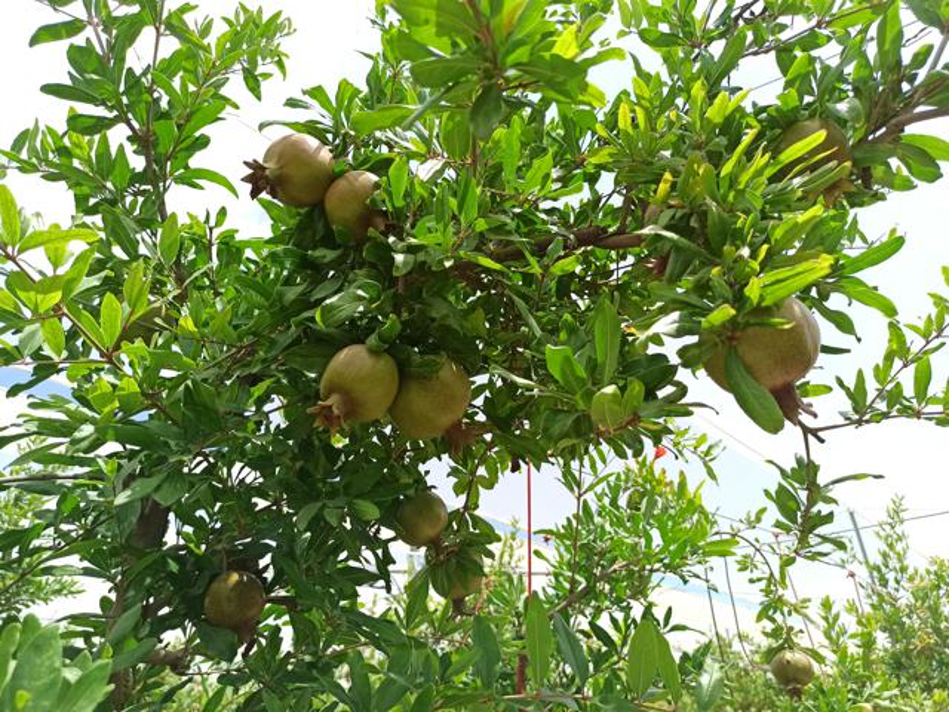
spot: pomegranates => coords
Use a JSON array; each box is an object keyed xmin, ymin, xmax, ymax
[
  {"xmin": 445, "ymin": 574, "xmax": 482, "ymax": 620},
  {"xmin": 770, "ymin": 650, "xmax": 814, "ymax": 697},
  {"xmin": 396, "ymin": 492, "xmax": 460, "ymax": 564},
  {"xmin": 388, "ymin": 356, "xmax": 489, "ymax": 458},
  {"xmin": 783, "ymin": 117, "xmax": 854, "ymax": 209},
  {"xmin": 240, "ymin": 132, "xmax": 337, "ymax": 208},
  {"xmin": 697, "ymin": 297, "xmax": 821, "ymax": 427},
  {"xmin": 322, "ymin": 169, "xmax": 394, "ymax": 242},
  {"xmin": 304, "ymin": 343, "xmax": 399, "ymax": 435},
  {"xmin": 203, "ymin": 568, "xmax": 265, "ymax": 644}
]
